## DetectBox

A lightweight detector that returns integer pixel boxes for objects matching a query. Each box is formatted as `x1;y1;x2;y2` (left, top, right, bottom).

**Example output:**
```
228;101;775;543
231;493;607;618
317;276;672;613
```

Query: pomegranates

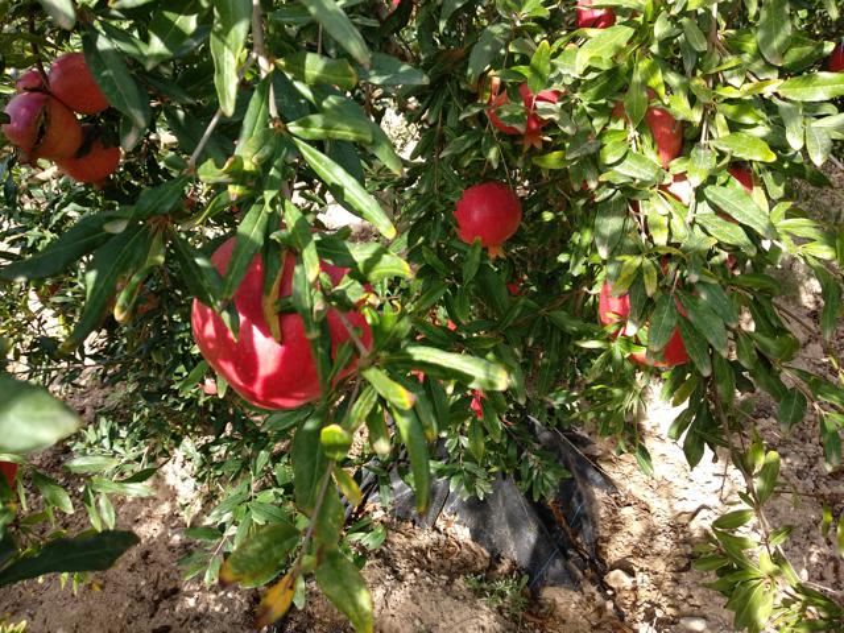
597;284;692;368
0;91;83;171
454;178;524;261
826;42;844;74
47;51;111;115
193;236;372;411
16;67;47;95
645;88;683;169
574;0;616;29
489;76;563;152
54;141;120;191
